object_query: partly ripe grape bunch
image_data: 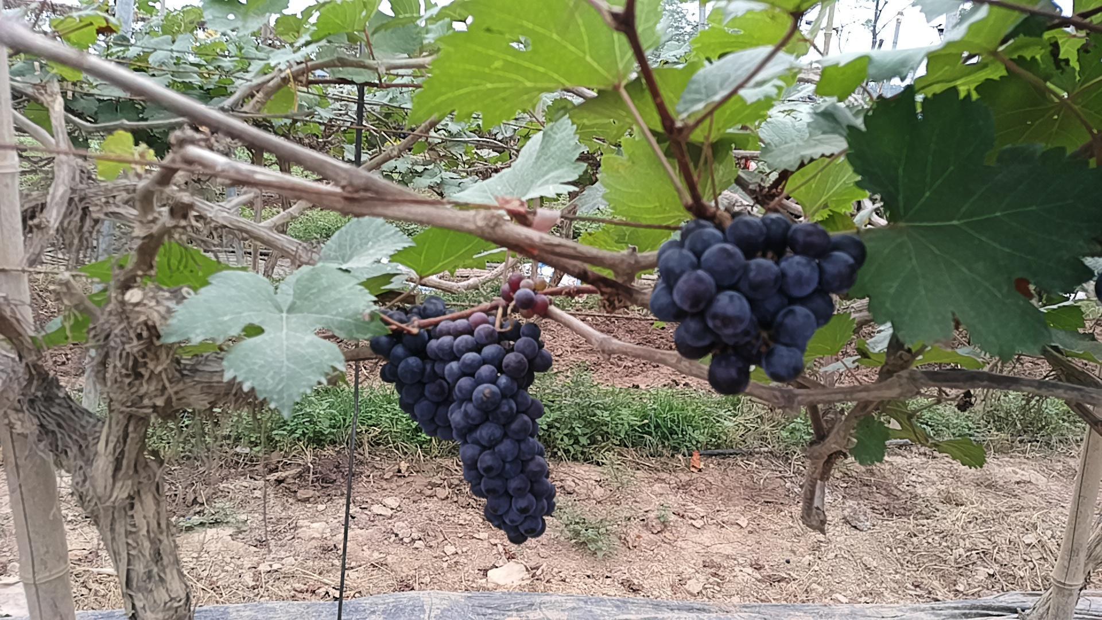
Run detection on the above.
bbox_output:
[500,272,550,317]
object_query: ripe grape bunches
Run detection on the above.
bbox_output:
[650,213,866,394]
[370,296,456,441]
[426,312,556,544]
